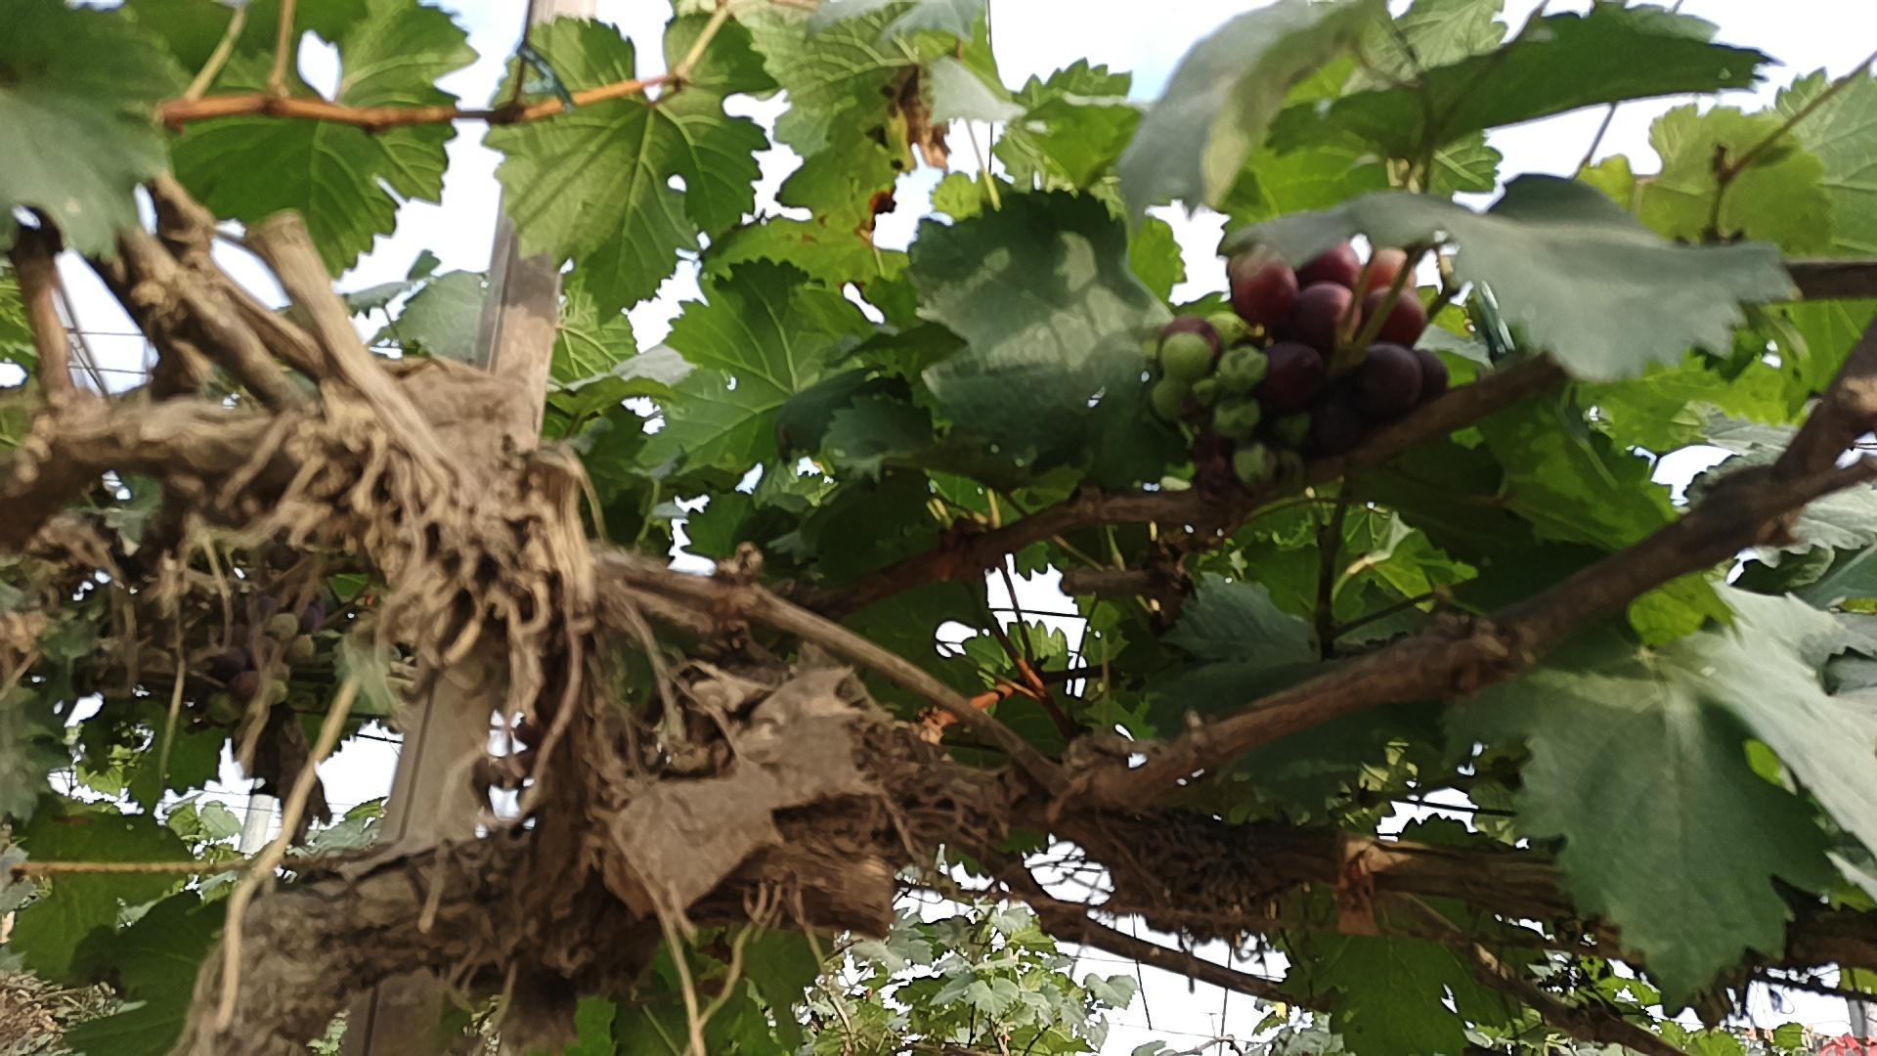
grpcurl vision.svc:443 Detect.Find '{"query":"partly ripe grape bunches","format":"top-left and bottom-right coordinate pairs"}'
top-left (1152, 243), bottom-right (1448, 485)
top-left (182, 545), bottom-right (335, 732)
